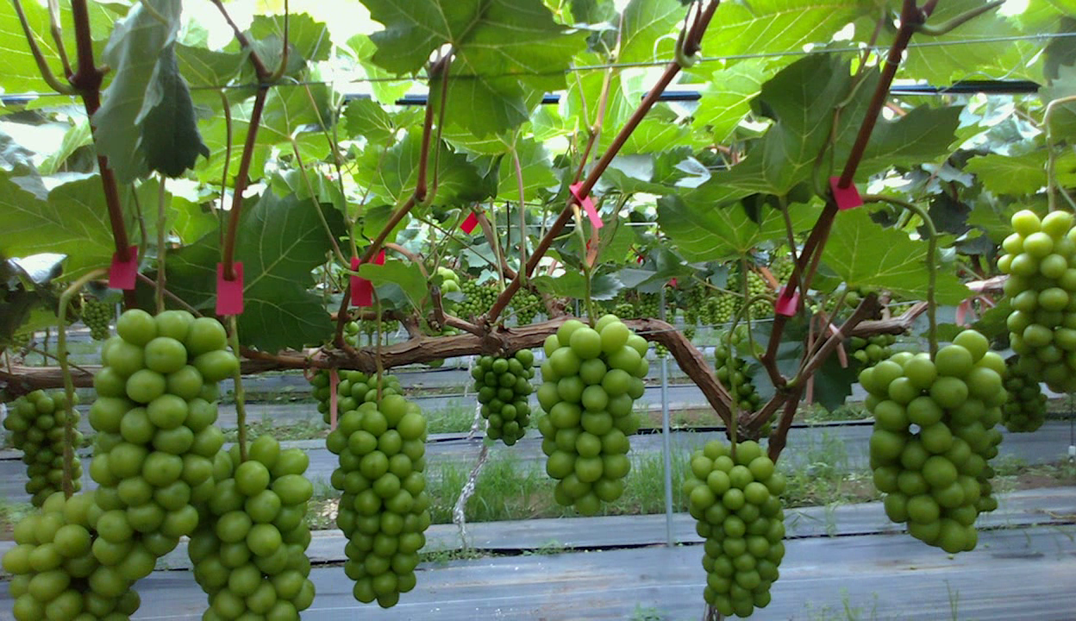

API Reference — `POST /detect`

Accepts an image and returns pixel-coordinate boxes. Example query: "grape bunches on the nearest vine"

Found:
[535,314,650,517]
[680,440,786,618]
[188,434,315,620]
[998,210,1075,393]
[86,310,237,580]
[325,394,430,608]
[859,330,1008,554]
[3,489,141,620]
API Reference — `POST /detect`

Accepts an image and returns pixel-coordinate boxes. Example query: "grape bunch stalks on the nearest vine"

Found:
[860,193,937,363]
[58,267,109,500]
[572,204,597,329]
[229,317,249,463]
[1042,94,1075,213]
[372,283,383,411]
[727,293,775,466]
